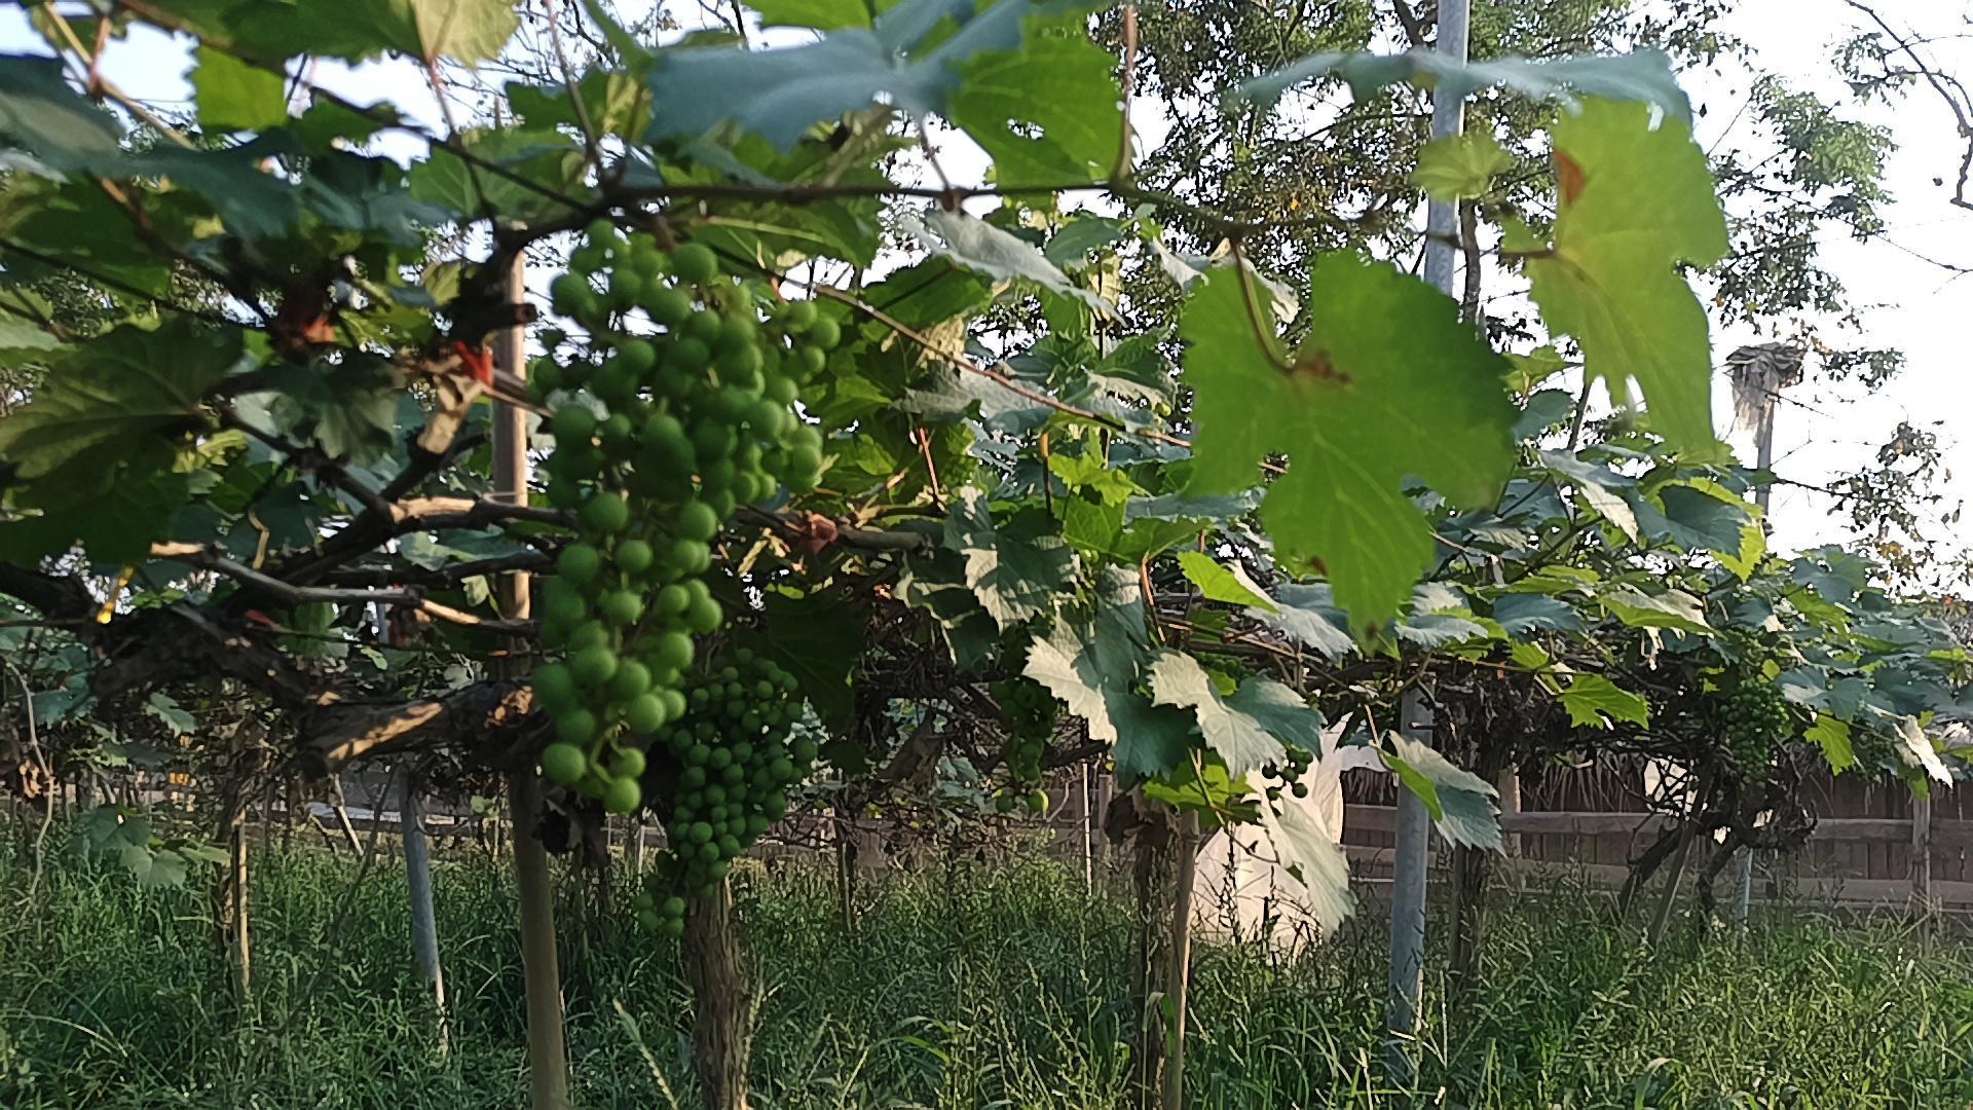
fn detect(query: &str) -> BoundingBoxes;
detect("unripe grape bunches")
[636,649,816,934]
[990,617,1056,816]
[1261,746,1315,802]
[1720,681,1788,790]
[532,222,839,812]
